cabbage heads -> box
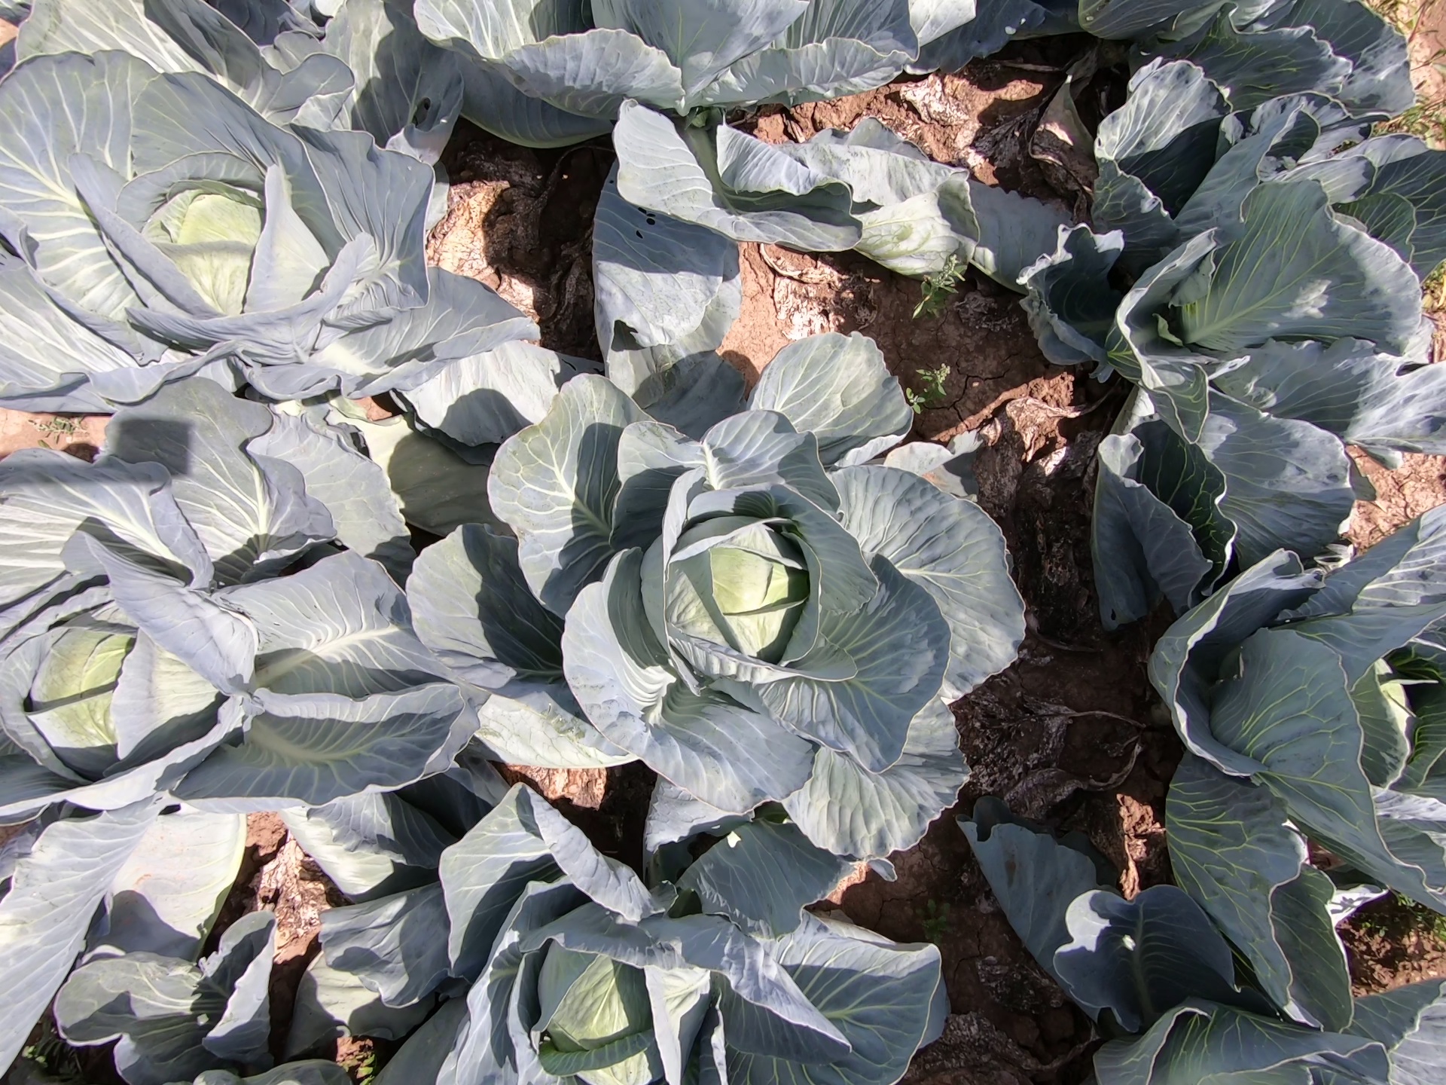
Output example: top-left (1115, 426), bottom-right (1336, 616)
top-left (651, 511), bottom-right (814, 676)
top-left (1264, 640), bottom-right (1417, 777)
top-left (137, 174), bottom-right (317, 345)
top-left (20, 584), bottom-right (245, 781)
top-left (541, 905), bottom-right (706, 1082)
